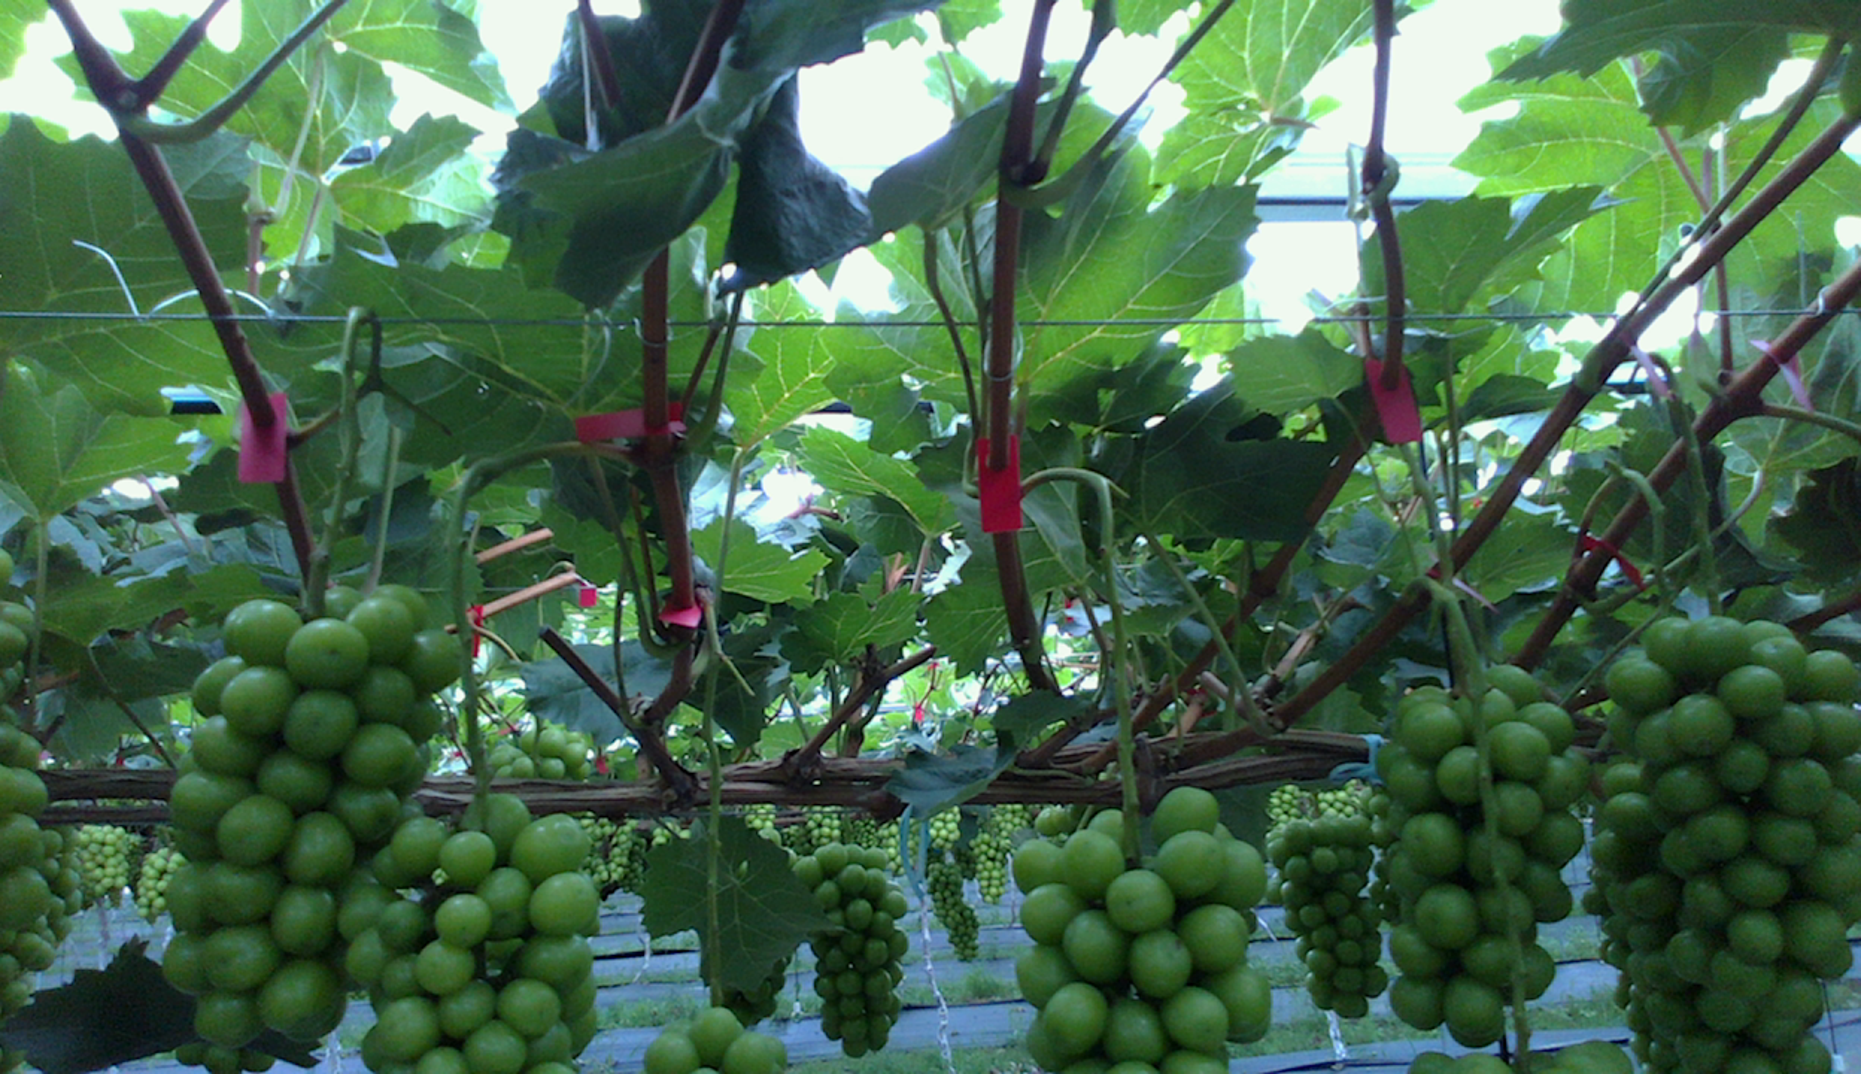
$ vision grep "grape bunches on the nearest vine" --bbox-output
[1408,1041,1636,1073]
[643,1010,787,1073]
[1375,664,1590,1047]
[1014,788,1273,1071]
[338,794,602,1073]
[1602,618,1860,1052]
[161,583,459,1050]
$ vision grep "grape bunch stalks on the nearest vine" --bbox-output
[1400,445,1455,589]
[1402,577,1533,1068]
[1021,467,1142,859]
[1654,352,1724,616]
[704,606,725,1007]
[446,440,634,832]
[303,306,373,616]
